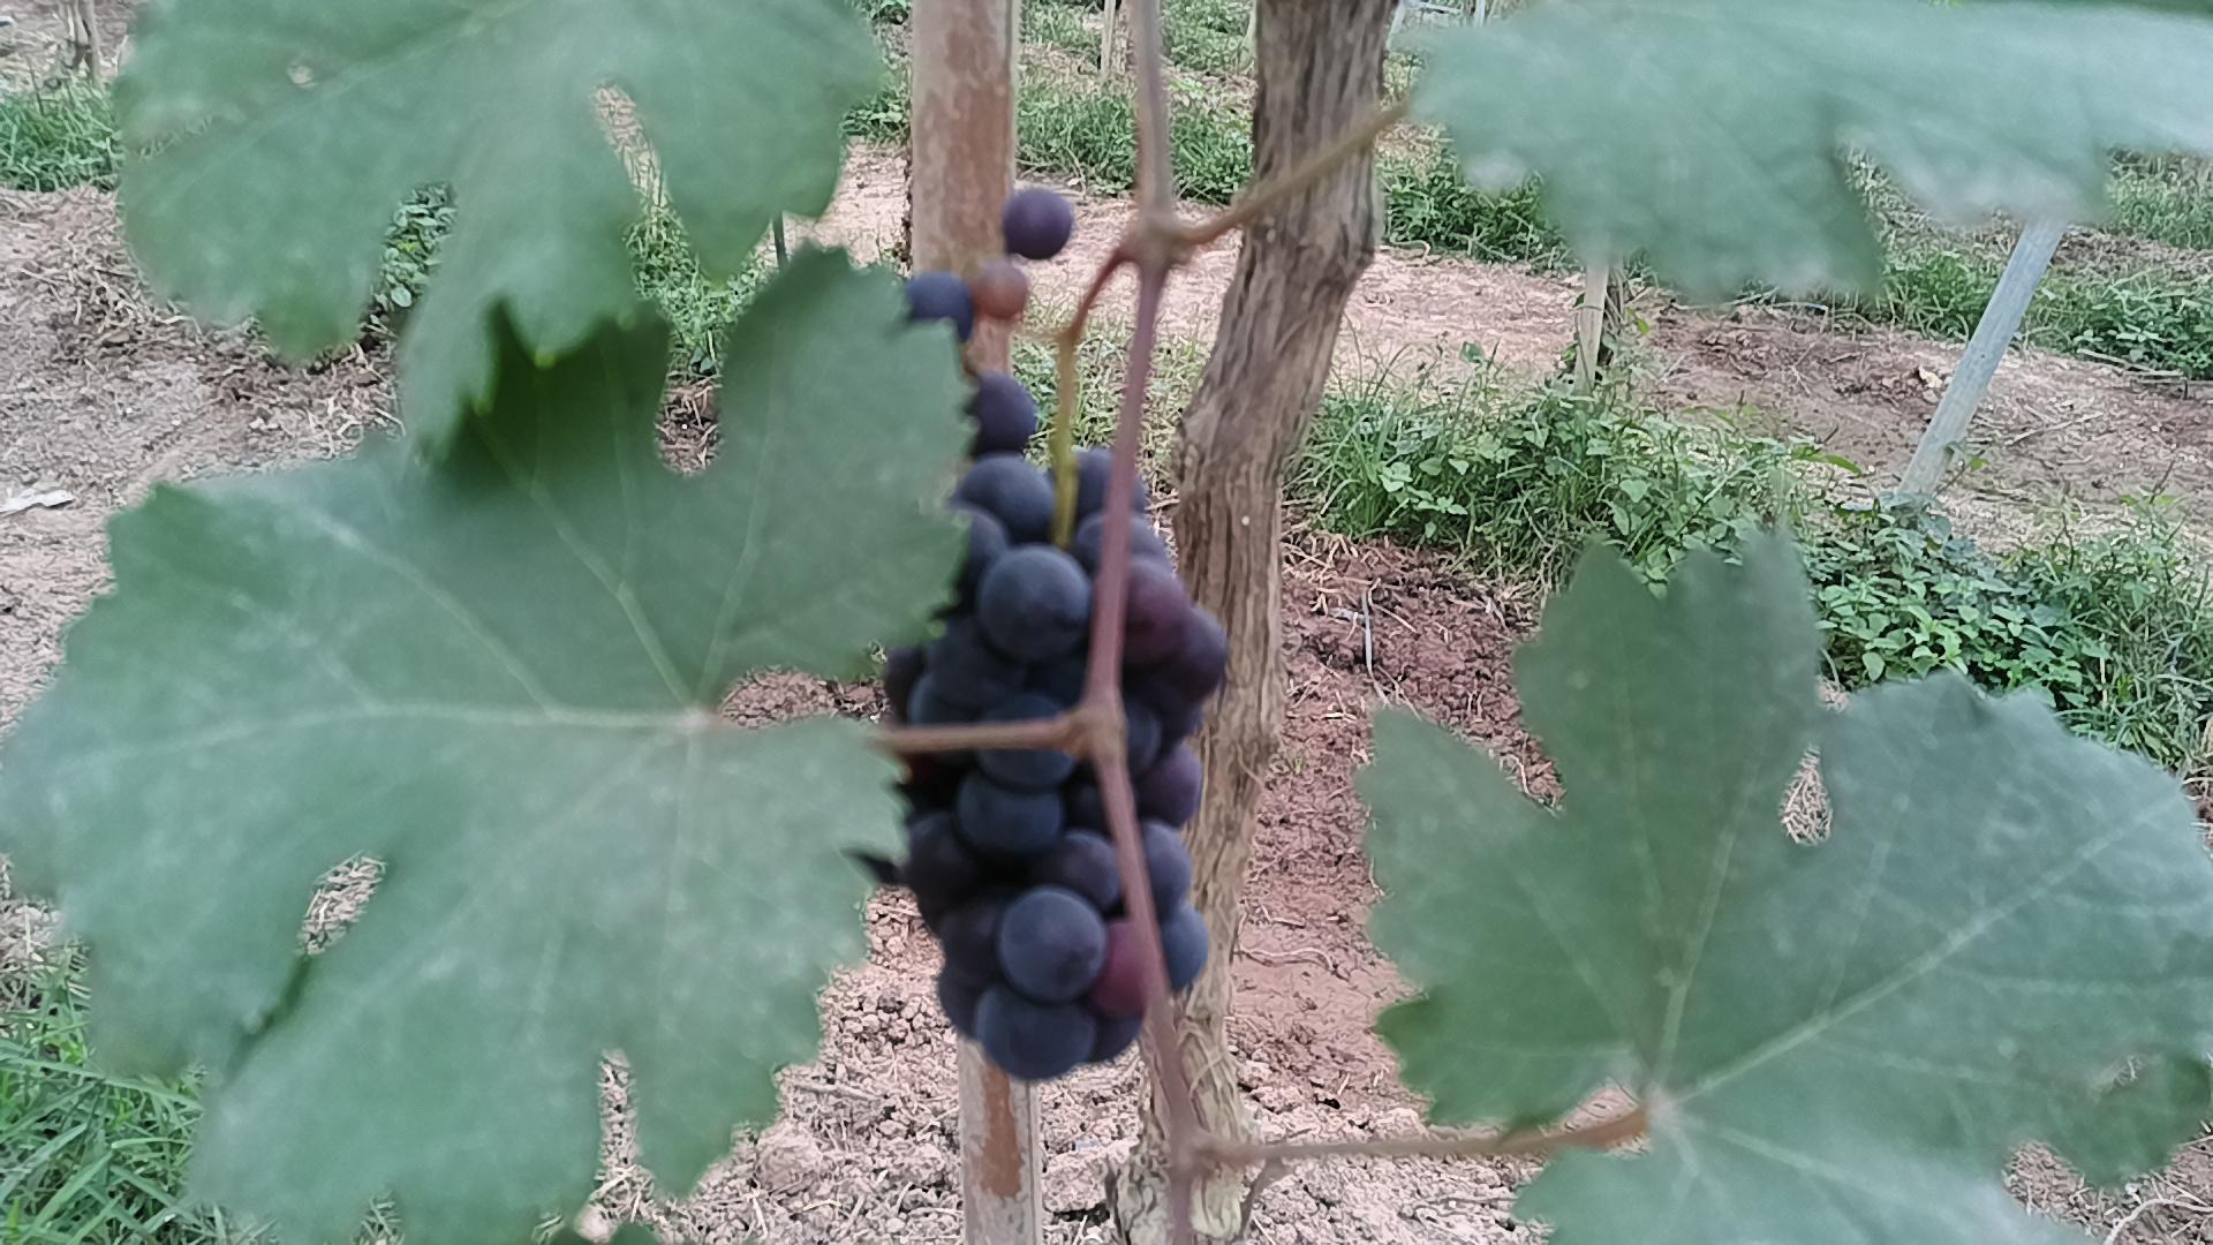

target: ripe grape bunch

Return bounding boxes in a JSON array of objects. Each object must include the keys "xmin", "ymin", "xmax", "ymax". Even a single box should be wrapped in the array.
[{"xmin": 866, "ymin": 187, "xmax": 1228, "ymax": 1079}]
